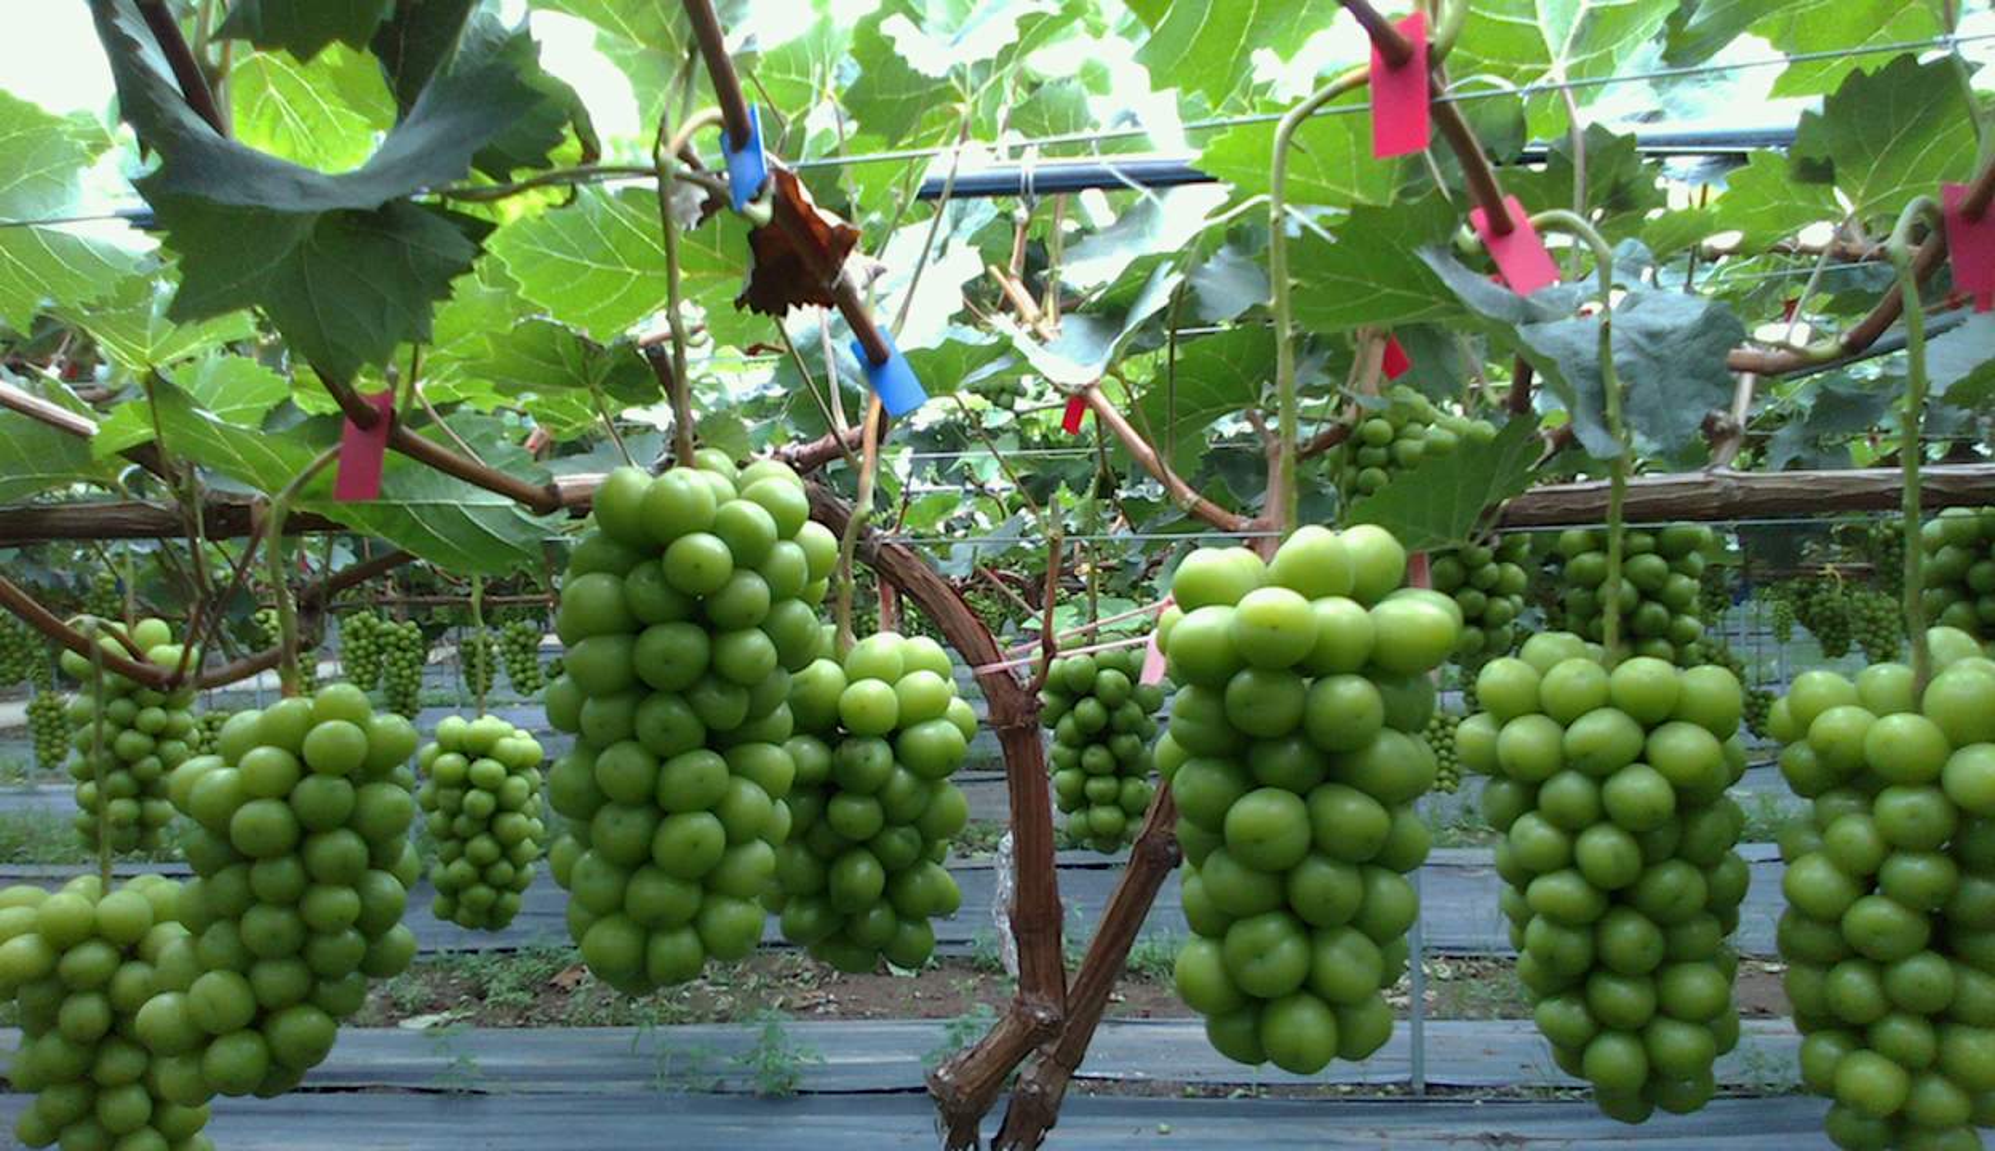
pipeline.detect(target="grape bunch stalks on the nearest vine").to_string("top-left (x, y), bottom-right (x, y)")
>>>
top-left (1889, 197), bottom-right (1947, 703)
top-left (267, 444), bottom-right (340, 699)
top-left (1528, 209), bottom-right (1626, 670)
top-left (836, 390), bottom-right (881, 663)
top-left (660, 109), bottom-right (727, 468)
top-left (1269, 66), bottom-right (1368, 545)
top-left (66, 615), bottom-right (109, 898)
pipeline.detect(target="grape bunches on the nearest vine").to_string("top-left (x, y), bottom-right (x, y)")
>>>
top-left (1455, 631), bottom-right (1754, 1124)
top-left (547, 449), bottom-right (838, 996)
top-left (1768, 627), bottom-right (1993, 1149)
top-left (1154, 524), bottom-right (1463, 1076)
top-left (0, 873), bottom-right (213, 1149)
top-left (759, 622), bottom-right (978, 974)
top-left (136, 684), bottom-right (422, 1109)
